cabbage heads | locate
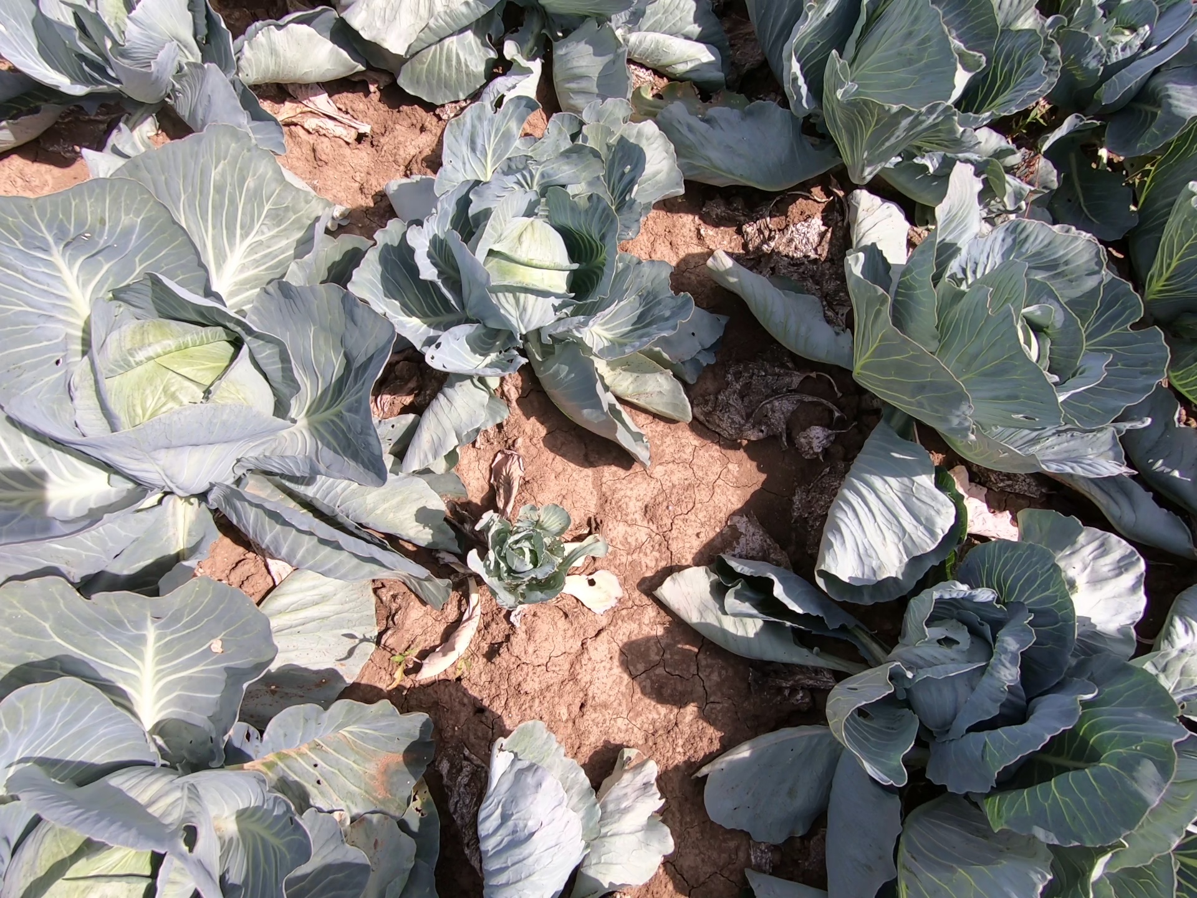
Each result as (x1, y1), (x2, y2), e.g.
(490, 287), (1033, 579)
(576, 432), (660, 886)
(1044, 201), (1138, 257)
(1, 768), (220, 896)
(463, 217), (574, 326)
(93, 0), (177, 69)
(943, 308), (1052, 412)
(909, 627), (995, 724)
(67, 317), (277, 494)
